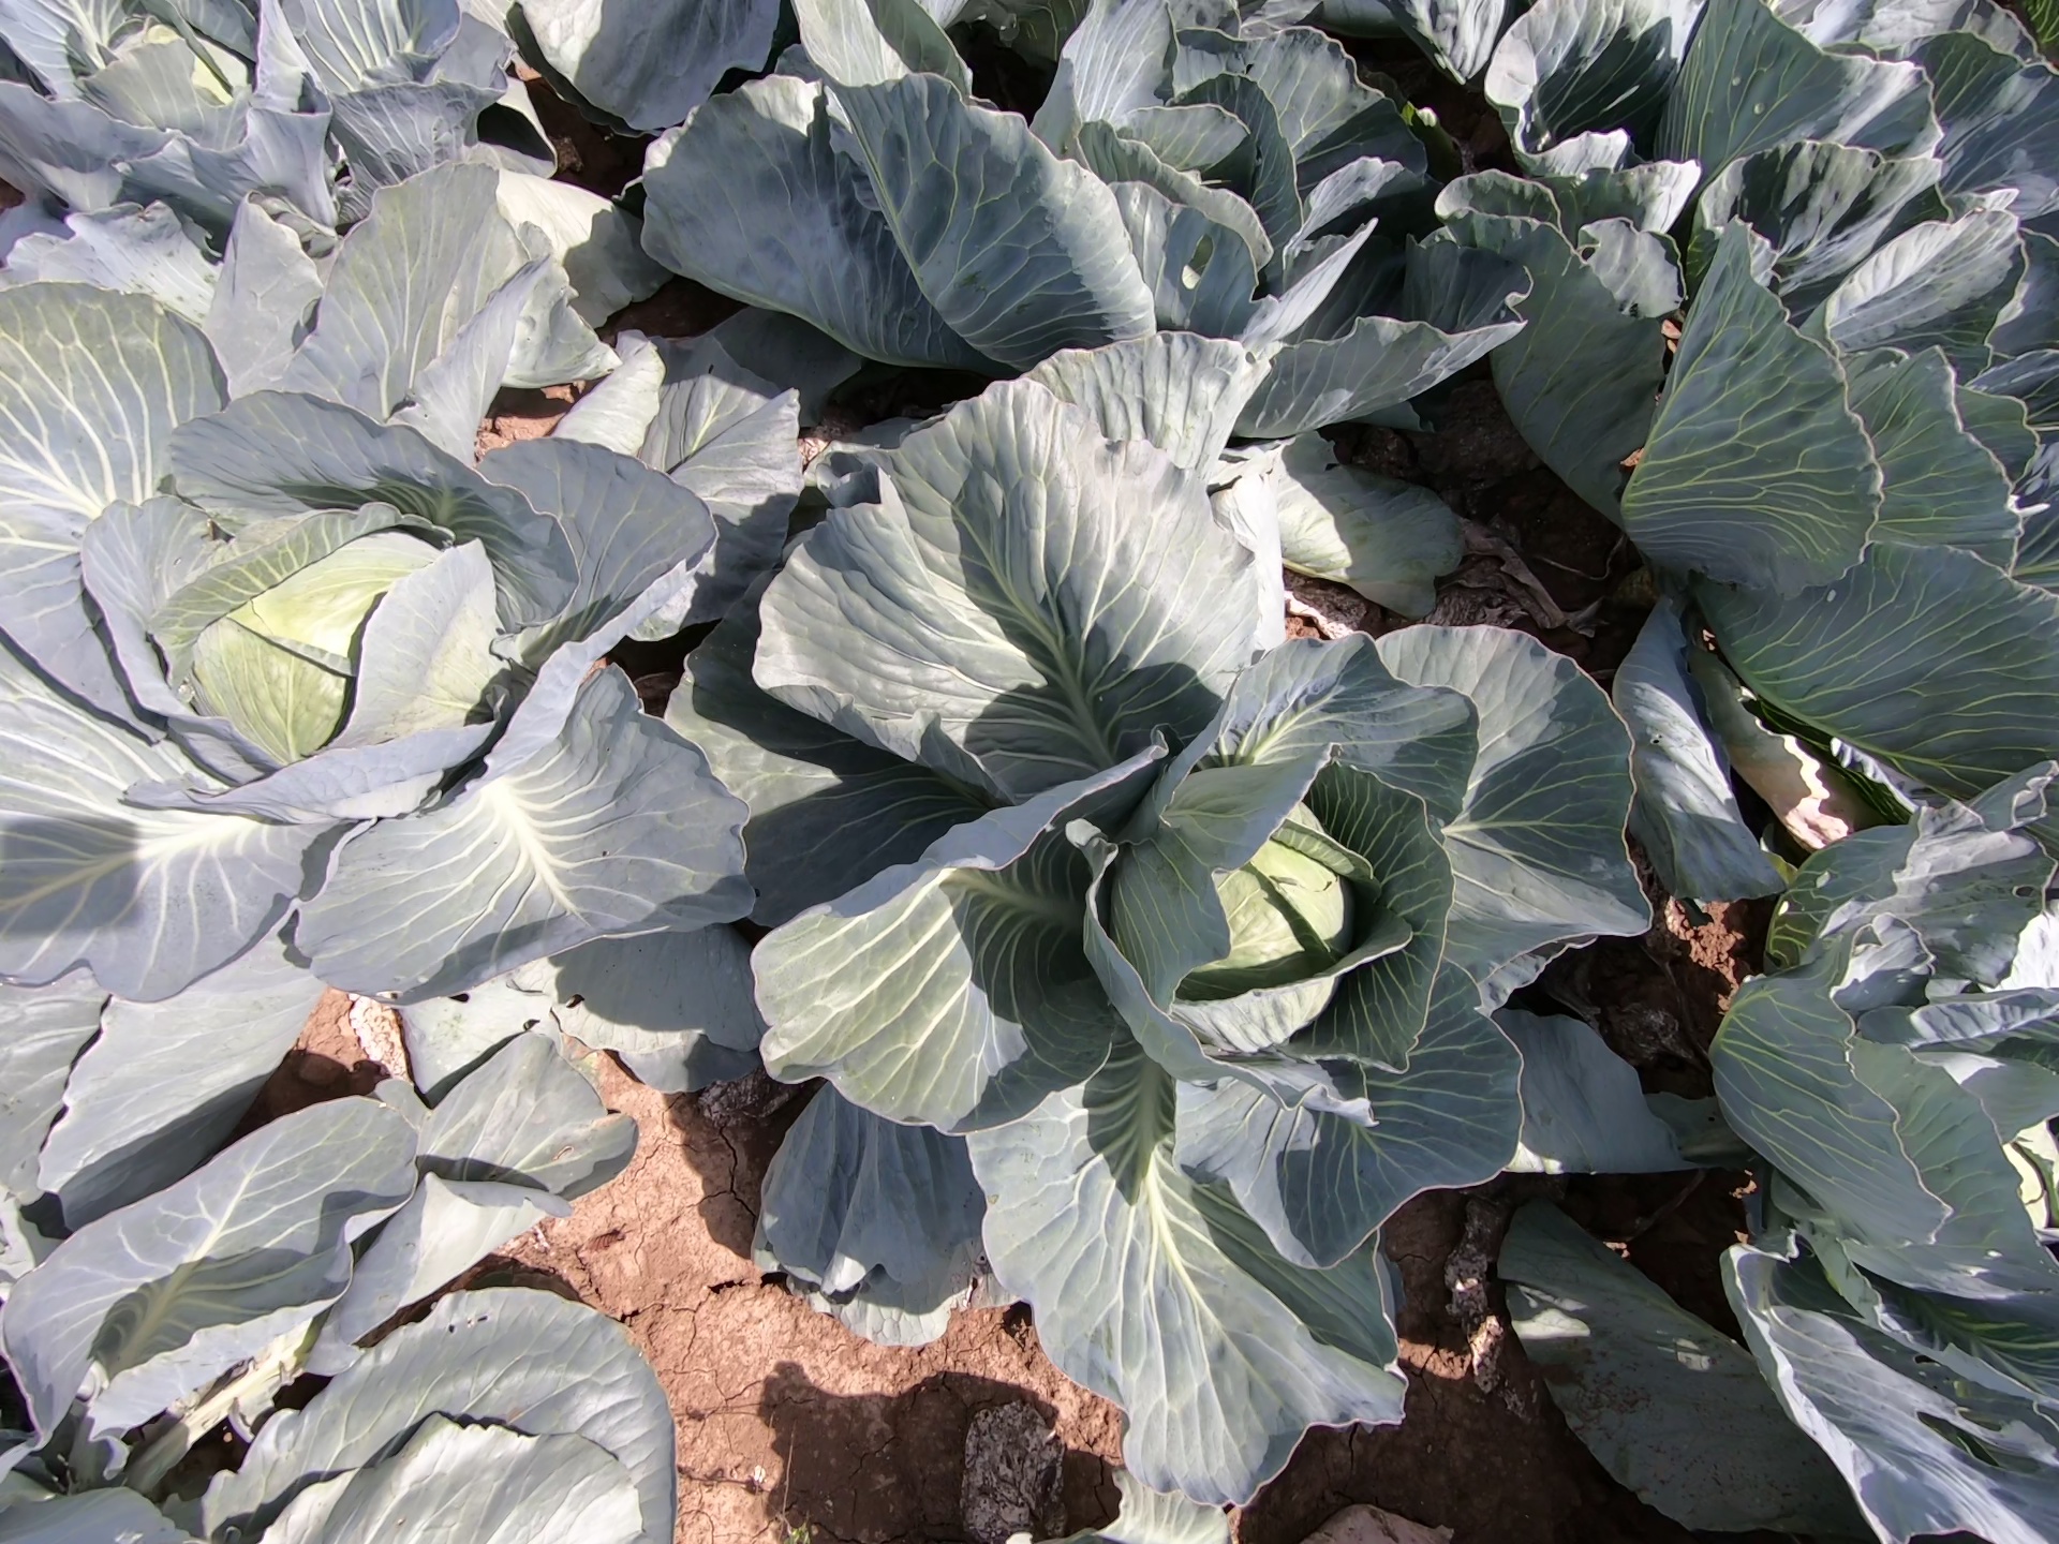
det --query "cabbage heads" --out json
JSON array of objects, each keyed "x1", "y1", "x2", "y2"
[
  {"x1": 1112, "y1": 770, "x2": 1354, "y2": 1048},
  {"x1": 97, "y1": 9, "x2": 284, "y2": 161},
  {"x1": 173, "y1": 508, "x2": 516, "y2": 791},
  {"x1": 1833, "y1": 1053, "x2": 2054, "y2": 1288}
]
